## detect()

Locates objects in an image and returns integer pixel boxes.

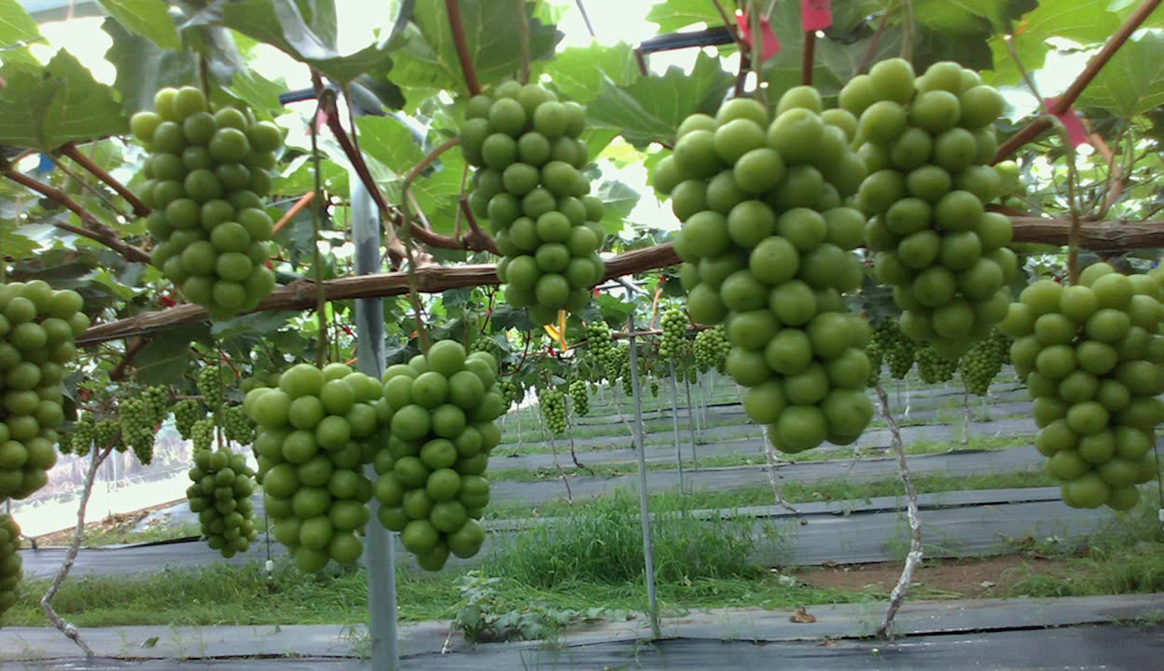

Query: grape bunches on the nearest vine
[462,82,605,329]
[1004,261,1163,510]
[242,363,382,576]
[842,60,1017,360]
[1,281,89,502]
[126,88,279,323]
[374,339,504,572]
[655,83,873,457]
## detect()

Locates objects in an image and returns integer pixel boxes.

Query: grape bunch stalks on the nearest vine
[401,140,457,353]
[311,87,331,365]
[751,0,763,100]
[900,1,915,59]
[1039,114,1081,282]
[198,55,208,92]
[520,0,531,81]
